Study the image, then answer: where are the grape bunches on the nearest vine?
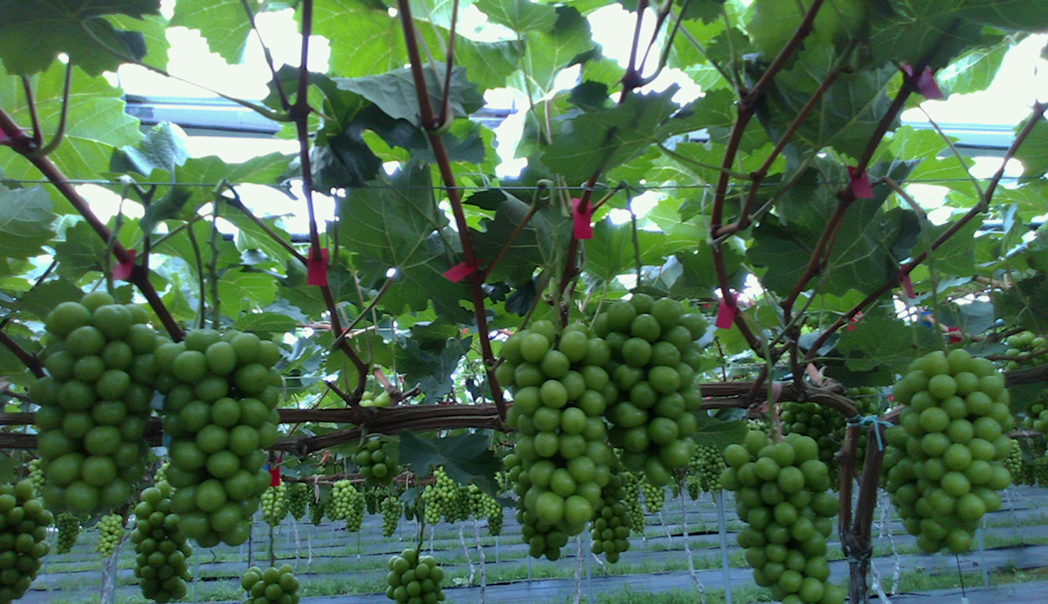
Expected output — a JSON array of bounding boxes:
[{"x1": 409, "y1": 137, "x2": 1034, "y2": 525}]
[
  {"x1": 153, "y1": 329, "x2": 283, "y2": 549},
  {"x1": 29, "y1": 291, "x2": 170, "y2": 516},
  {"x1": 720, "y1": 430, "x2": 846, "y2": 603},
  {"x1": 494, "y1": 321, "x2": 620, "y2": 537},
  {"x1": 590, "y1": 293, "x2": 705, "y2": 487},
  {"x1": 881, "y1": 349, "x2": 1014, "y2": 554}
]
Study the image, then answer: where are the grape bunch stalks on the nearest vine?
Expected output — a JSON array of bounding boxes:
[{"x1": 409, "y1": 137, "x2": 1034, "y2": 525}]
[
  {"x1": 621, "y1": 180, "x2": 642, "y2": 293},
  {"x1": 206, "y1": 180, "x2": 226, "y2": 331},
  {"x1": 739, "y1": 312, "x2": 778, "y2": 445},
  {"x1": 883, "y1": 179, "x2": 948, "y2": 357},
  {"x1": 102, "y1": 180, "x2": 128, "y2": 300},
  {"x1": 481, "y1": 179, "x2": 563, "y2": 349}
]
